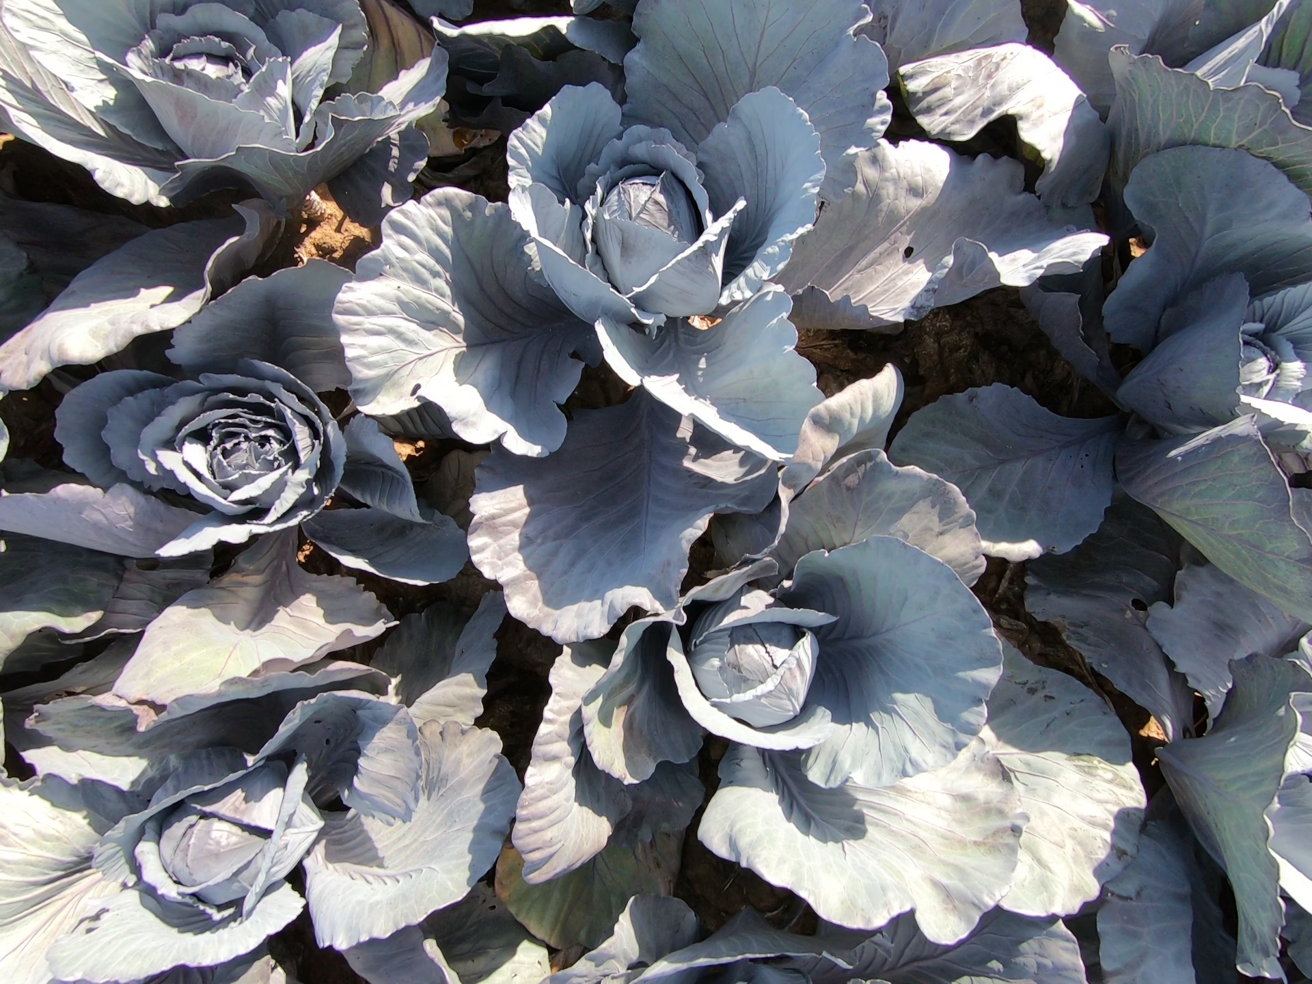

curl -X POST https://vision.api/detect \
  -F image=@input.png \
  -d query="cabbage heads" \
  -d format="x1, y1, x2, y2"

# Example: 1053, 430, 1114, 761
211, 425, 297, 494
155, 47, 273, 156
693, 596, 810, 720
160, 782, 297, 898
596, 172, 697, 297
1170, 335, 1276, 422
